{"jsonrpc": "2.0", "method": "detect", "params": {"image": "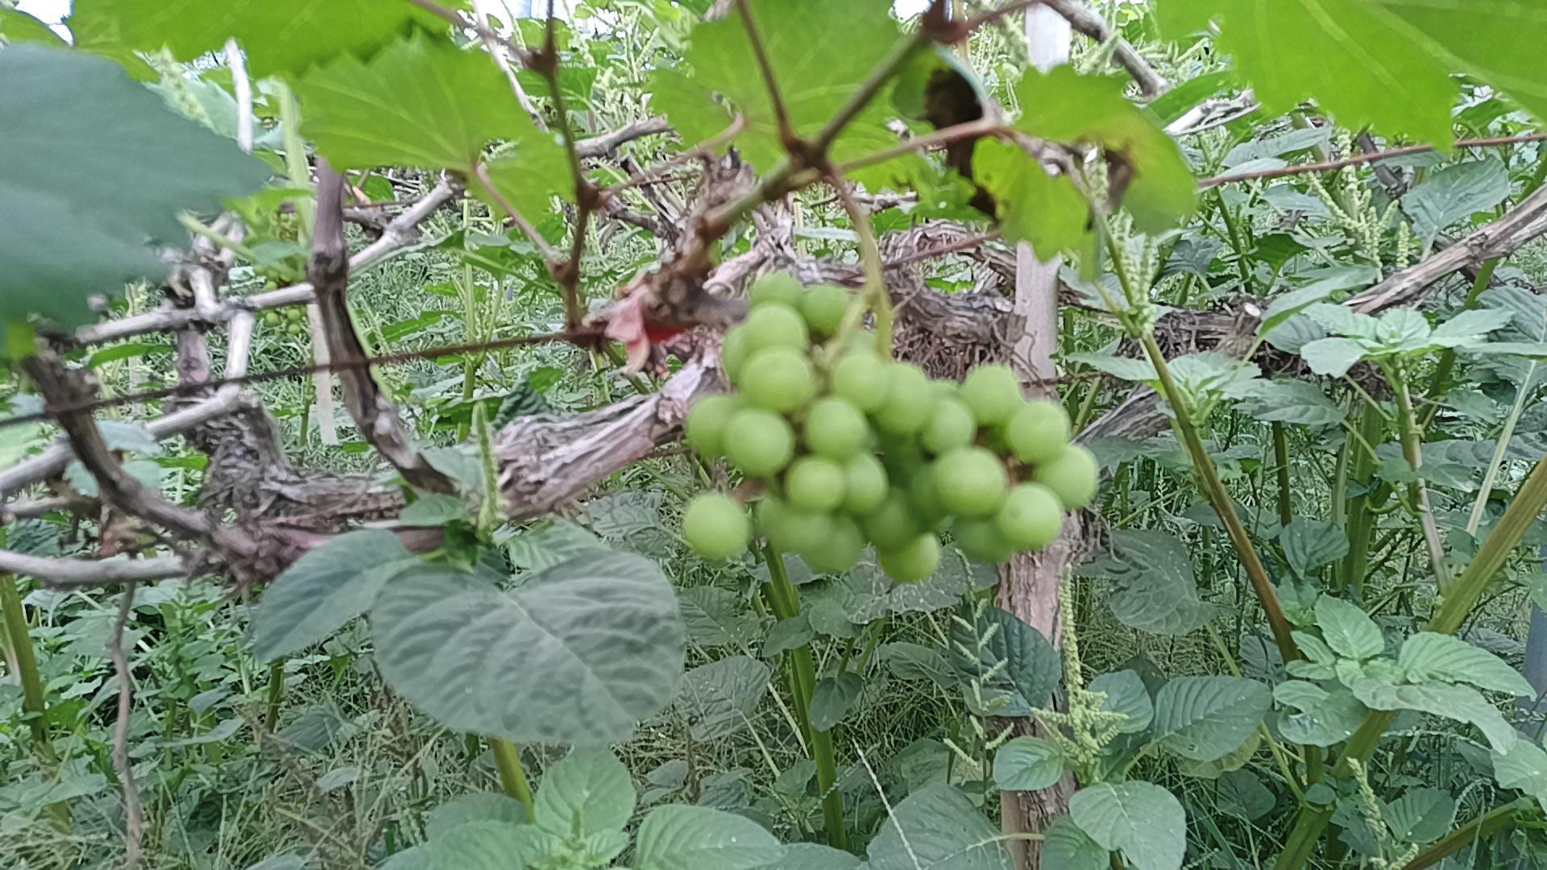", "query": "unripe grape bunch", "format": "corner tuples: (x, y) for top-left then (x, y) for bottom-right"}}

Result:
(680, 270), (1097, 582)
